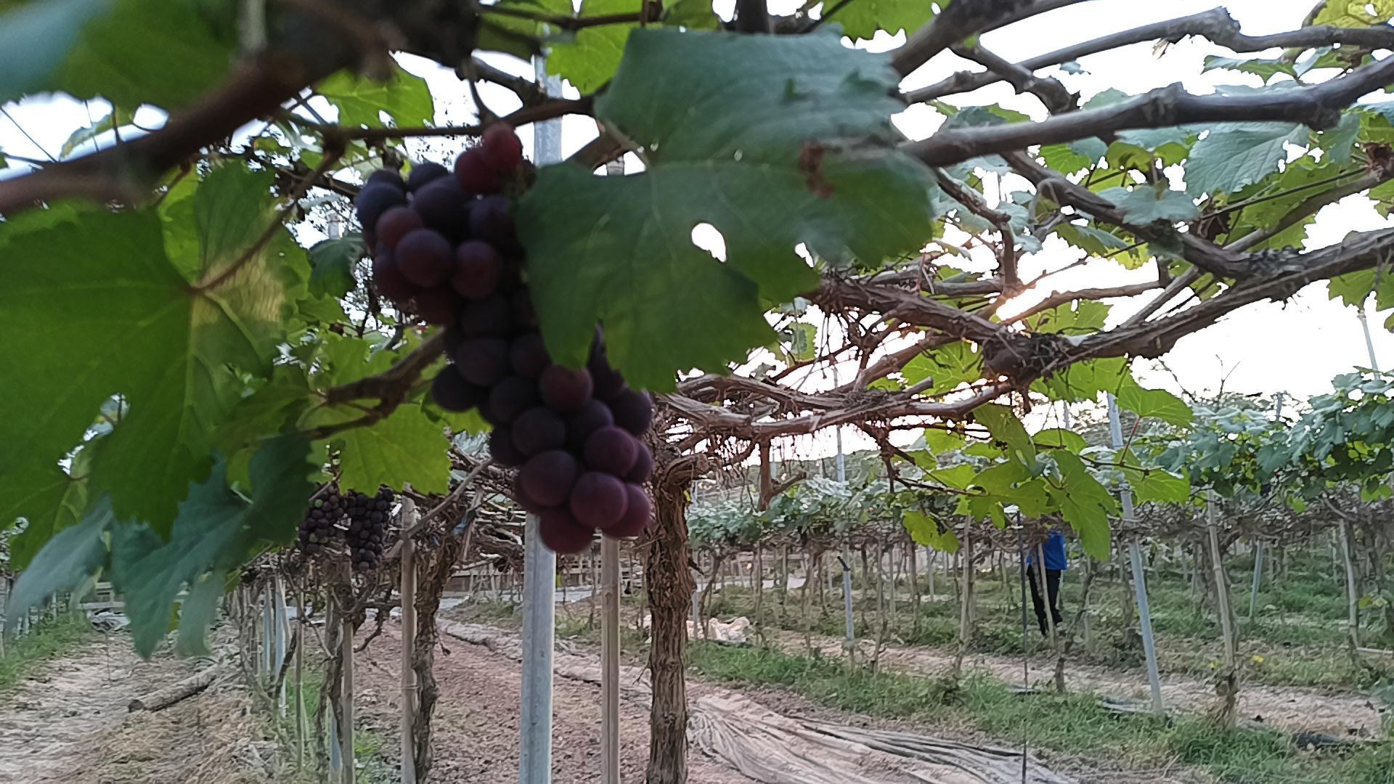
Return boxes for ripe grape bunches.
[339,486,402,572]
[355,126,652,553]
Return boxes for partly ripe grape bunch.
[294,478,346,562]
